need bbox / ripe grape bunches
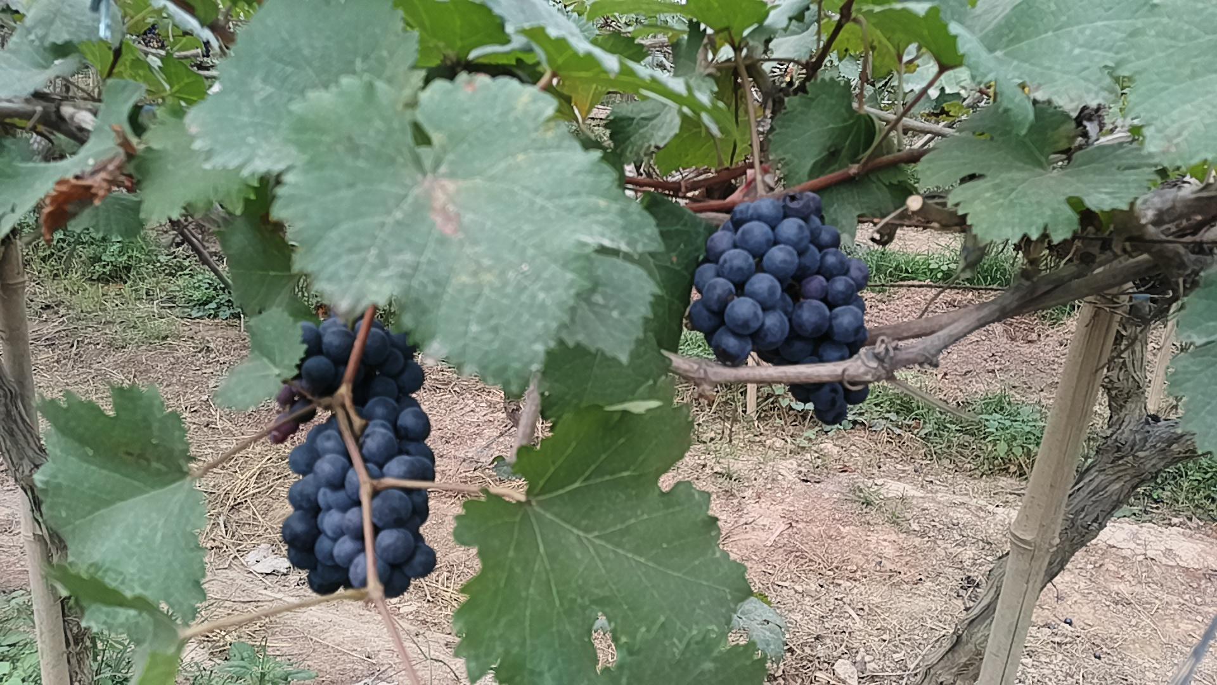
[266,315,435,596]
[688,190,870,426]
